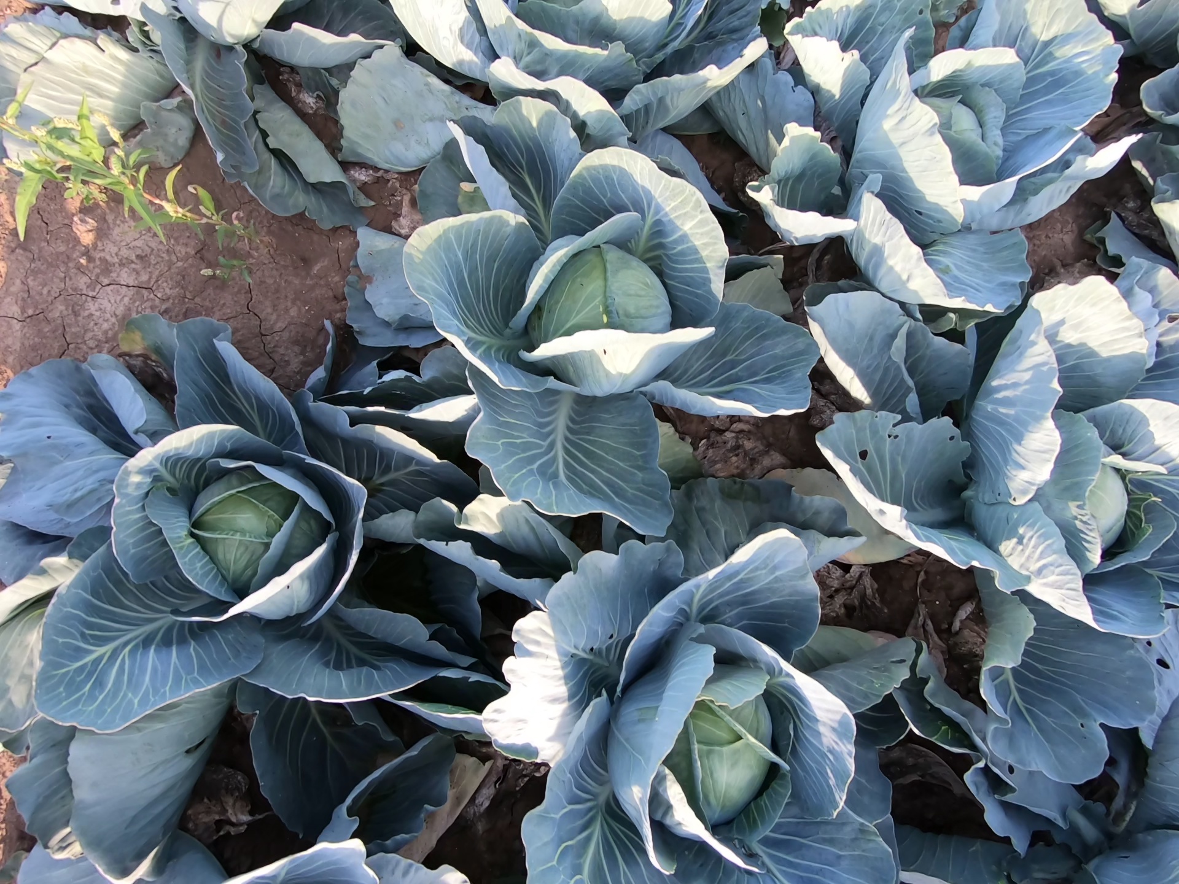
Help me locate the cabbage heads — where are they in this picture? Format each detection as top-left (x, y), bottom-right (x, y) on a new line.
top-left (190, 472), bottom-right (332, 592)
top-left (892, 93), bottom-right (986, 193)
top-left (523, 244), bottom-right (668, 389)
top-left (638, 669), bottom-right (771, 829)
top-left (1007, 428), bottom-right (1132, 559)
